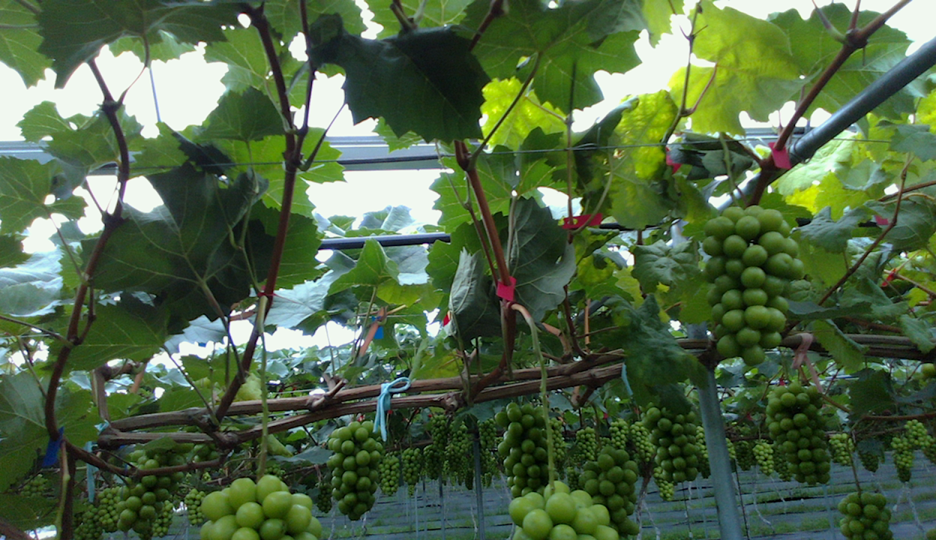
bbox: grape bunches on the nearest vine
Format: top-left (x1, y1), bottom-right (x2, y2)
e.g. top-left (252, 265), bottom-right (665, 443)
top-left (199, 475), bottom-right (322, 539)
top-left (701, 205), bottom-right (805, 367)
top-left (508, 481), bottom-right (619, 539)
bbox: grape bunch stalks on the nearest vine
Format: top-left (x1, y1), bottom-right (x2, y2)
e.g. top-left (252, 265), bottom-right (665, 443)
top-left (256, 295), bottom-right (268, 483)
top-left (720, 132), bottom-right (761, 206)
top-left (512, 304), bottom-right (555, 495)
